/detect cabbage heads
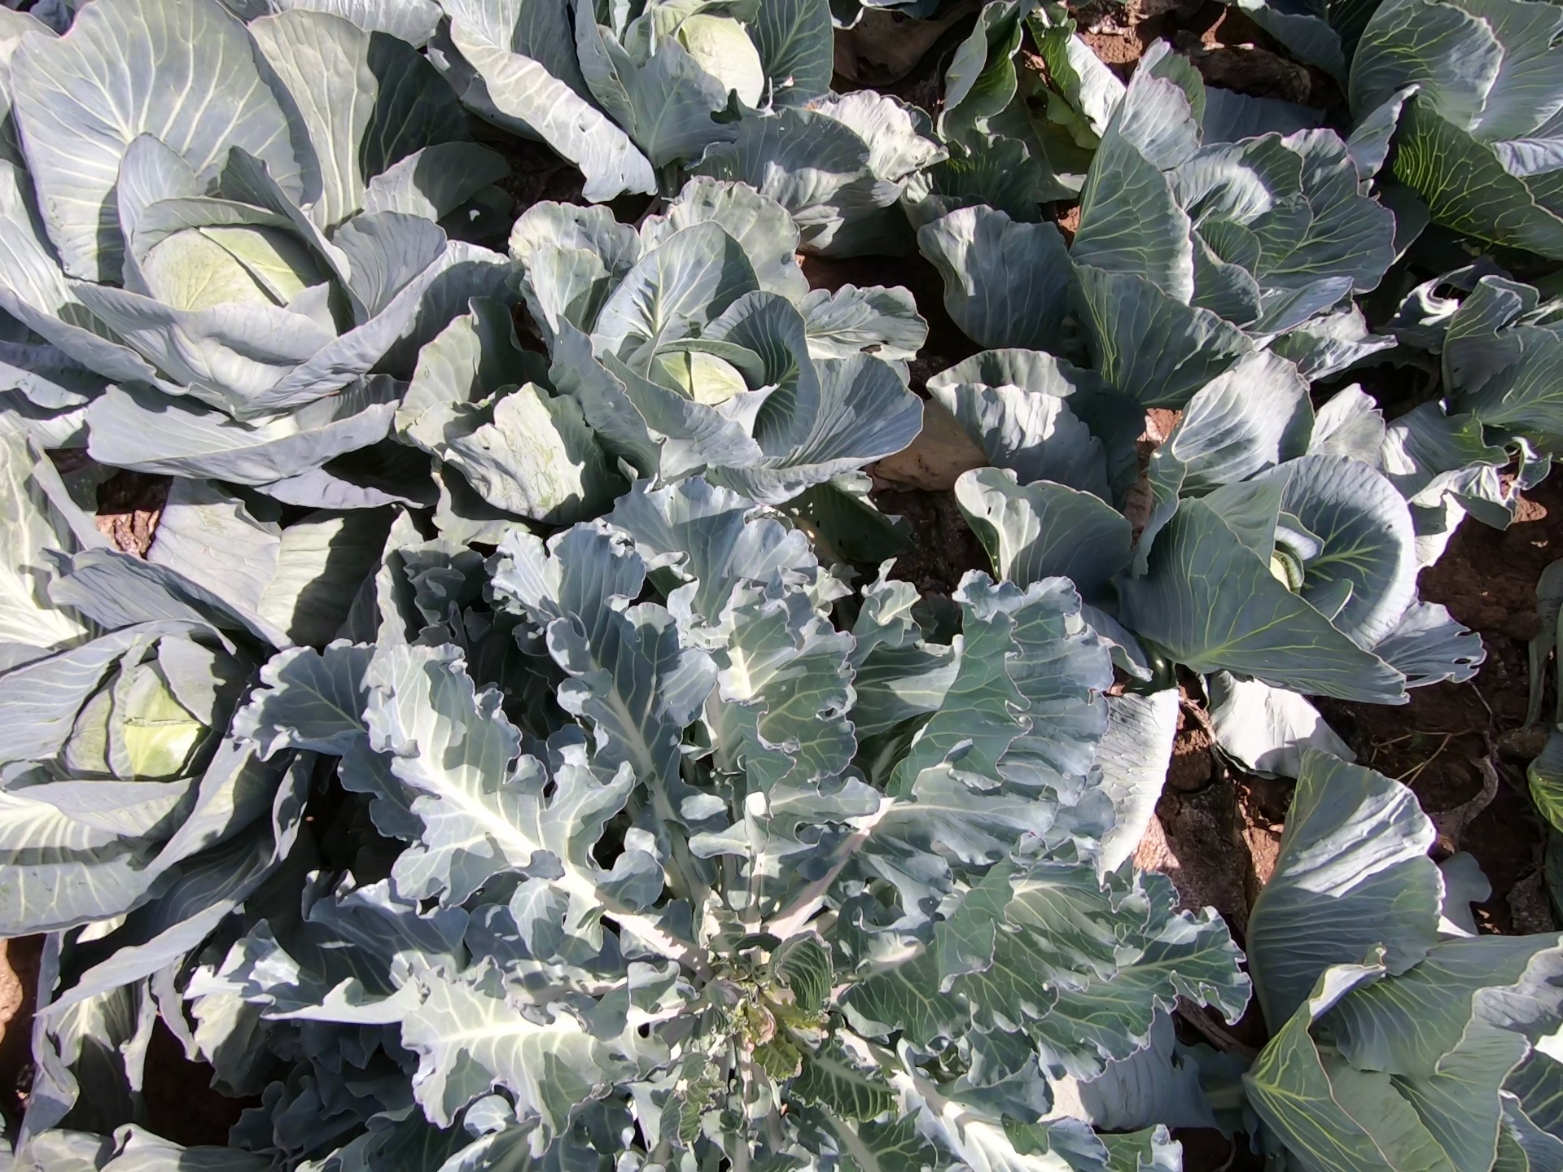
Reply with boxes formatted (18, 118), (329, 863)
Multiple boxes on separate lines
(128, 206), (346, 410)
(63, 652), (287, 851)
(1180, 544), (1293, 663)
(635, 338), (755, 466)
(623, 2), (767, 137)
